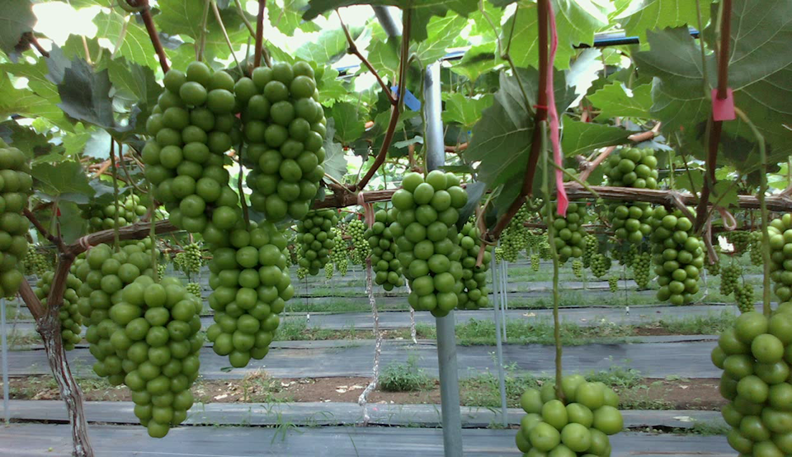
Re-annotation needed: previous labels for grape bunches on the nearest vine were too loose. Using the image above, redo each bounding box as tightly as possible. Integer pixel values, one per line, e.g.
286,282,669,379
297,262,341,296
390,169,468,318
109,275,203,439
515,374,624,456
76,244,152,387
235,60,327,222
710,301,791,456
141,61,242,244
208,218,293,368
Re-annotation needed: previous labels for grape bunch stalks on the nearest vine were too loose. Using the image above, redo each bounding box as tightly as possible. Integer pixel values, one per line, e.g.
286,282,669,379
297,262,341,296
735,106,772,319
145,180,158,283
198,1,209,61
238,142,250,231
406,53,428,181
538,120,567,407
110,137,120,253
234,0,272,69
